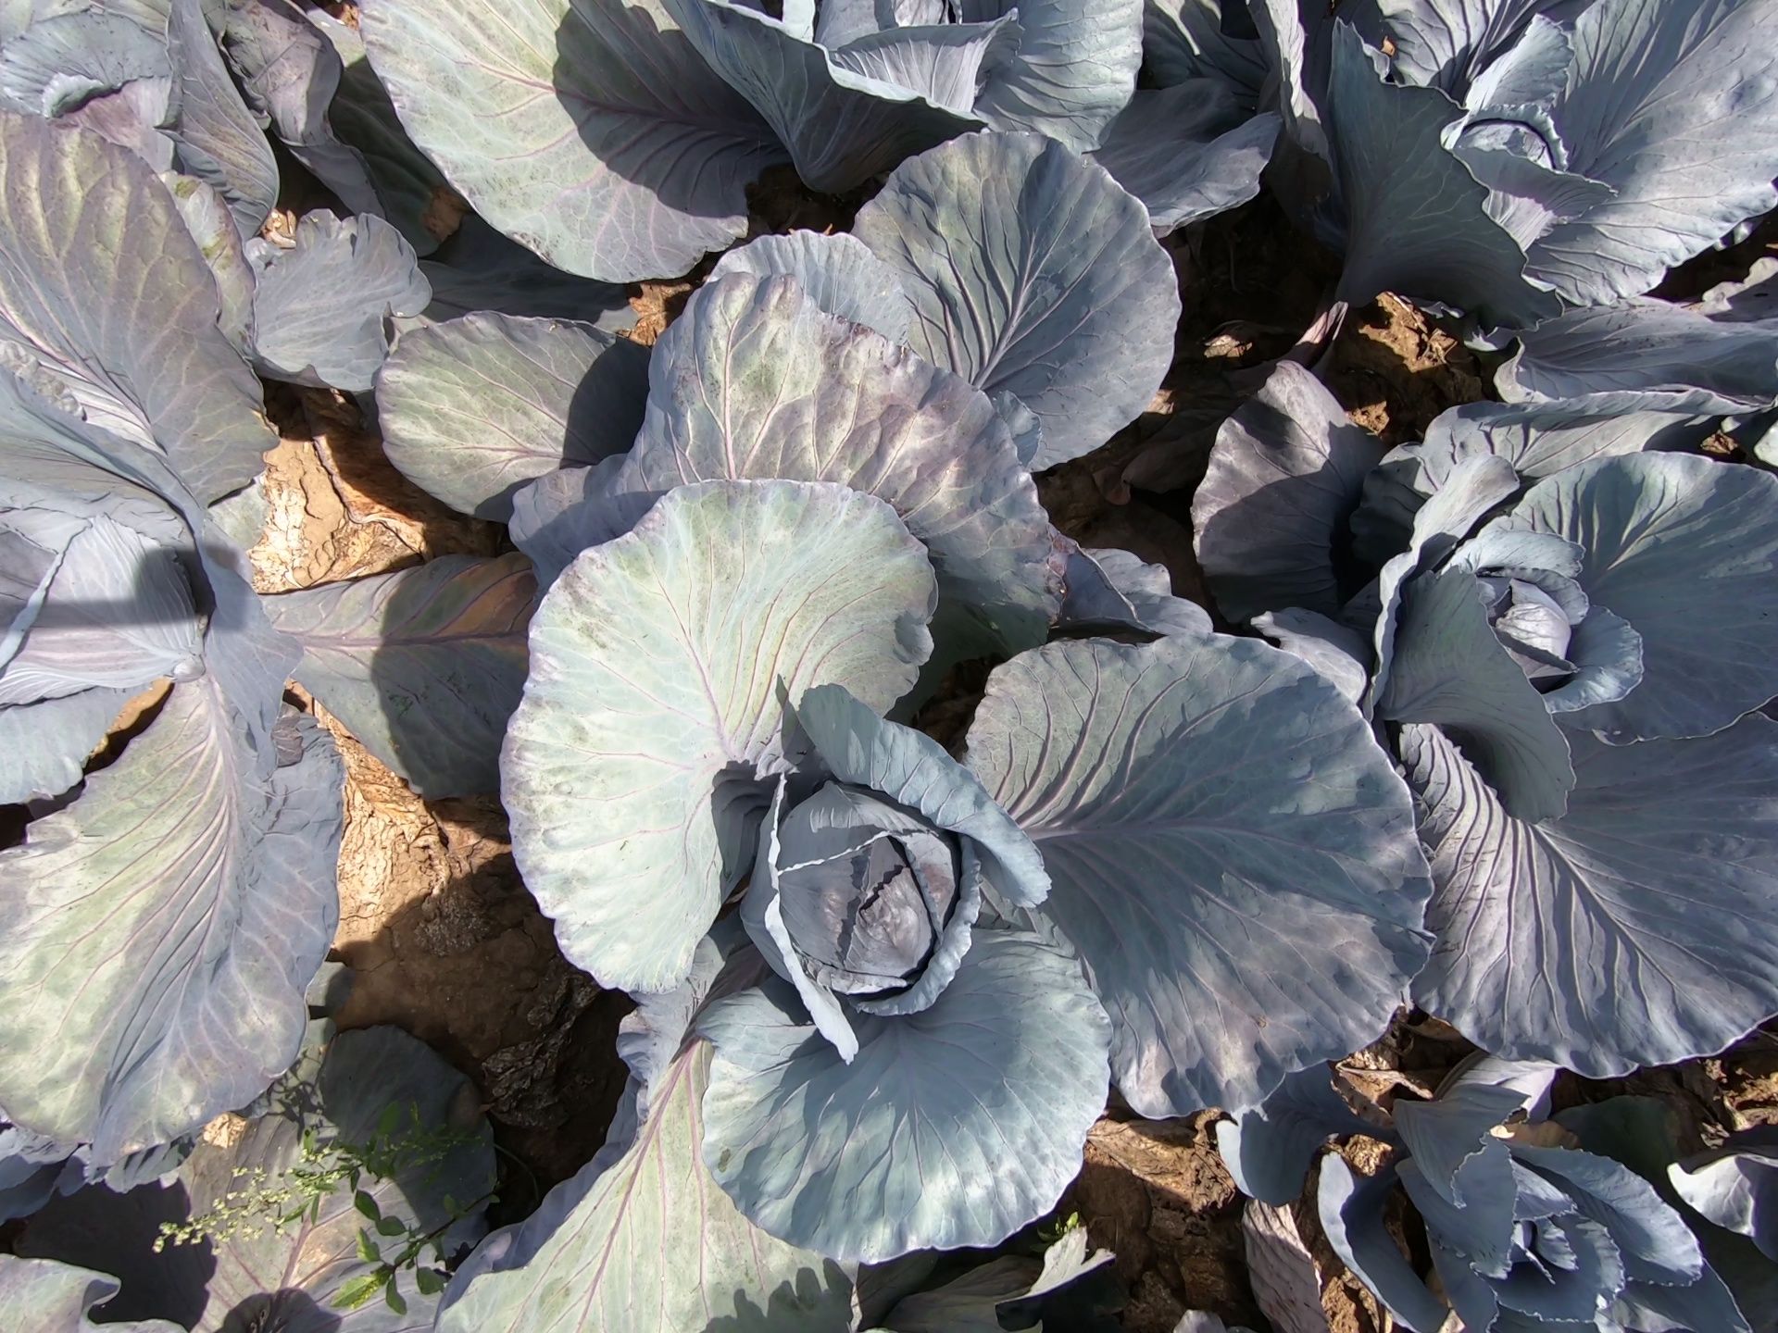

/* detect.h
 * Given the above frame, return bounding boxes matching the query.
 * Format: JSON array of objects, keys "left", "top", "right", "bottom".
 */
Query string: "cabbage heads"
[
  {"left": 751, "top": 787, "right": 962, "bottom": 991},
  {"left": 1440, "top": 1177, "right": 1539, "bottom": 1255},
  {"left": 1431, "top": 572, "right": 1574, "bottom": 692},
  {"left": 808, "top": 0, "right": 951, "bottom": 107},
  {"left": 1436, "top": 116, "right": 1560, "bottom": 243},
  {"left": 2, "top": 504, "right": 175, "bottom": 680}
]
